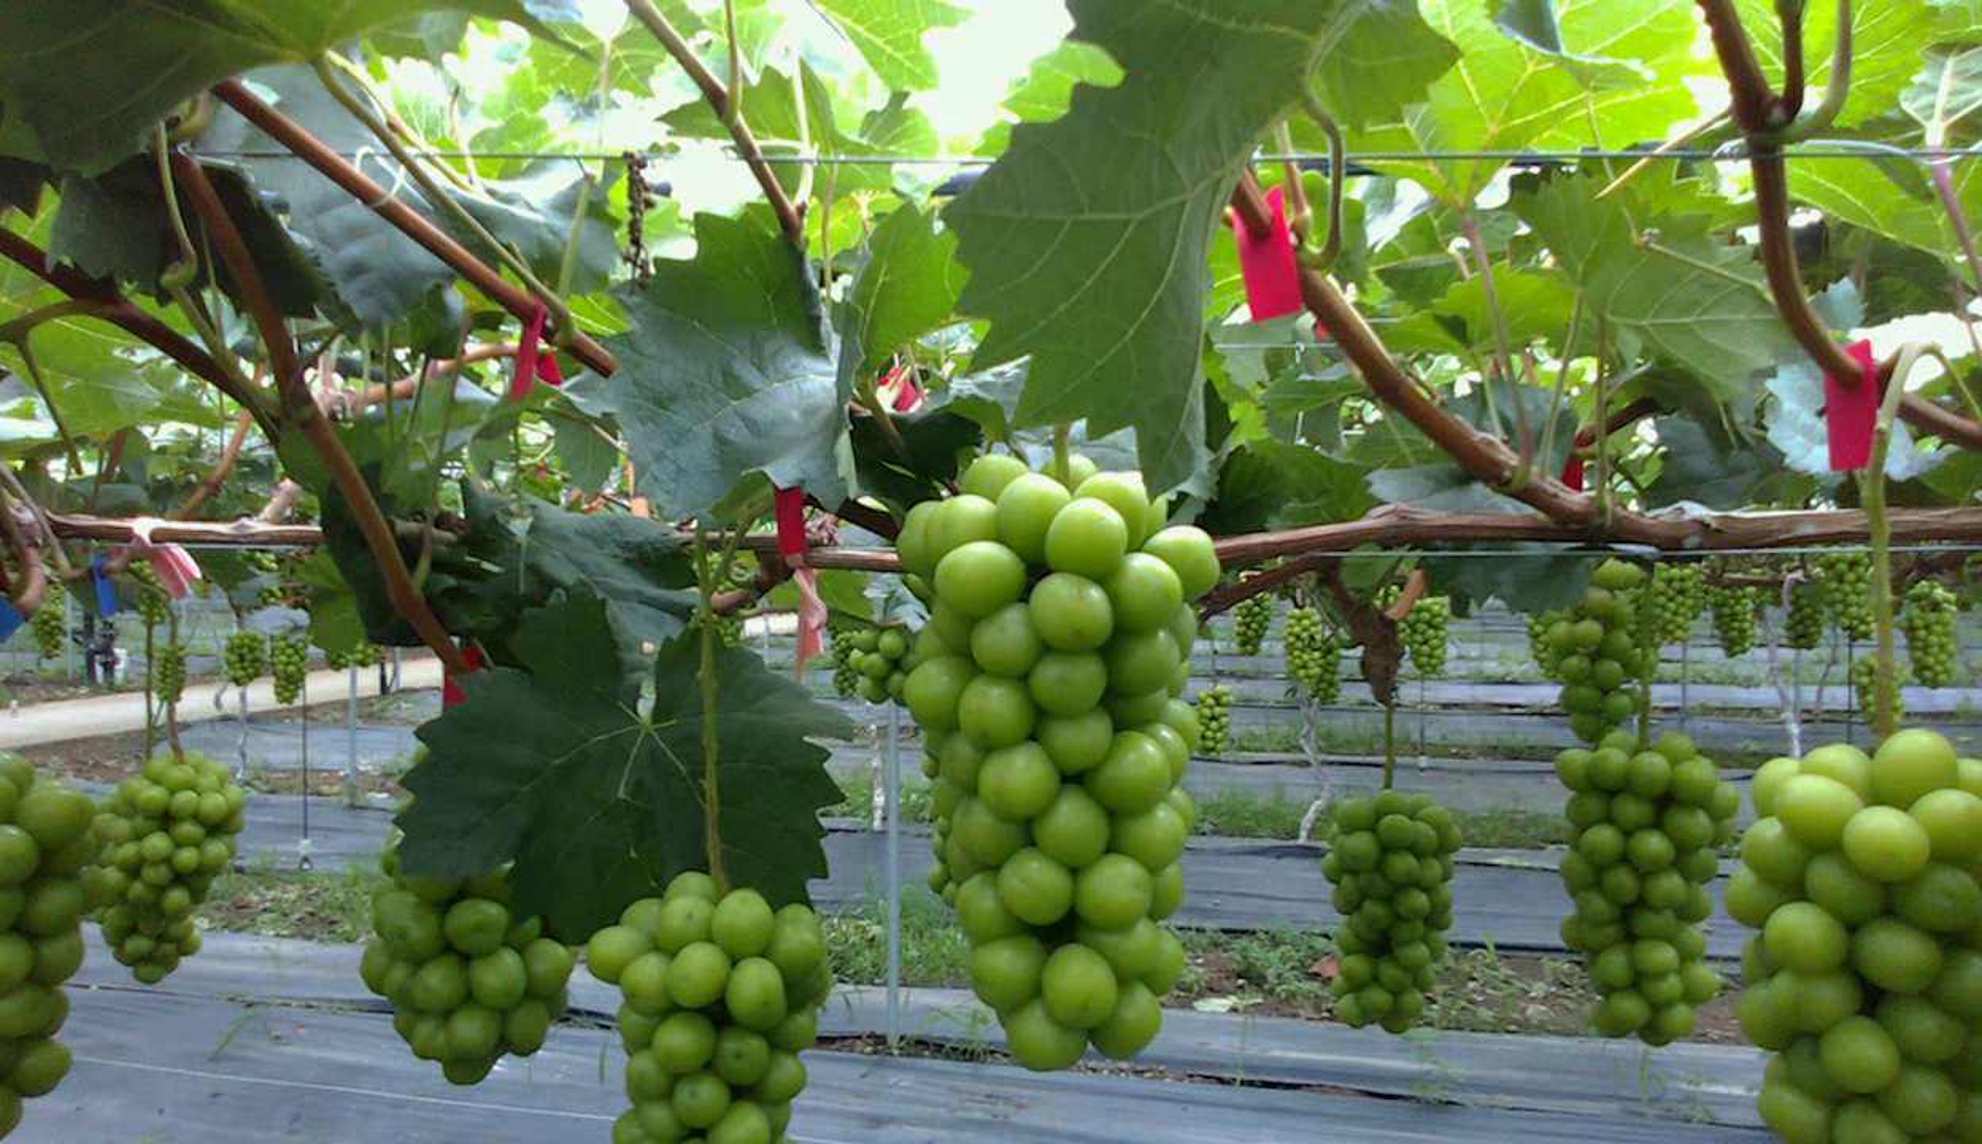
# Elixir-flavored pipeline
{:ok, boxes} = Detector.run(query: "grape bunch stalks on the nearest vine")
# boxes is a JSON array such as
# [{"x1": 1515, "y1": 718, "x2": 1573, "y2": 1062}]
[
  {"x1": 1055, "y1": 423, "x2": 1070, "y2": 489},
  {"x1": 694, "y1": 523, "x2": 731, "y2": 901},
  {"x1": 1861, "y1": 337, "x2": 1920, "y2": 748}
]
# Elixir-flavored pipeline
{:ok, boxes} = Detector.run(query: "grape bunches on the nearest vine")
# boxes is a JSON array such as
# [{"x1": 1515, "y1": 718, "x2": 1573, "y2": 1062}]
[
  {"x1": 2, "y1": 748, "x2": 105, "y2": 1136},
  {"x1": 586, "y1": 872, "x2": 832, "y2": 1142},
  {"x1": 1723, "y1": 726, "x2": 1980, "y2": 1142},
  {"x1": 894, "y1": 453, "x2": 1220, "y2": 1072},
  {"x1": 359, "y1": 829, "x2": 575, "y2": 1085}
]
